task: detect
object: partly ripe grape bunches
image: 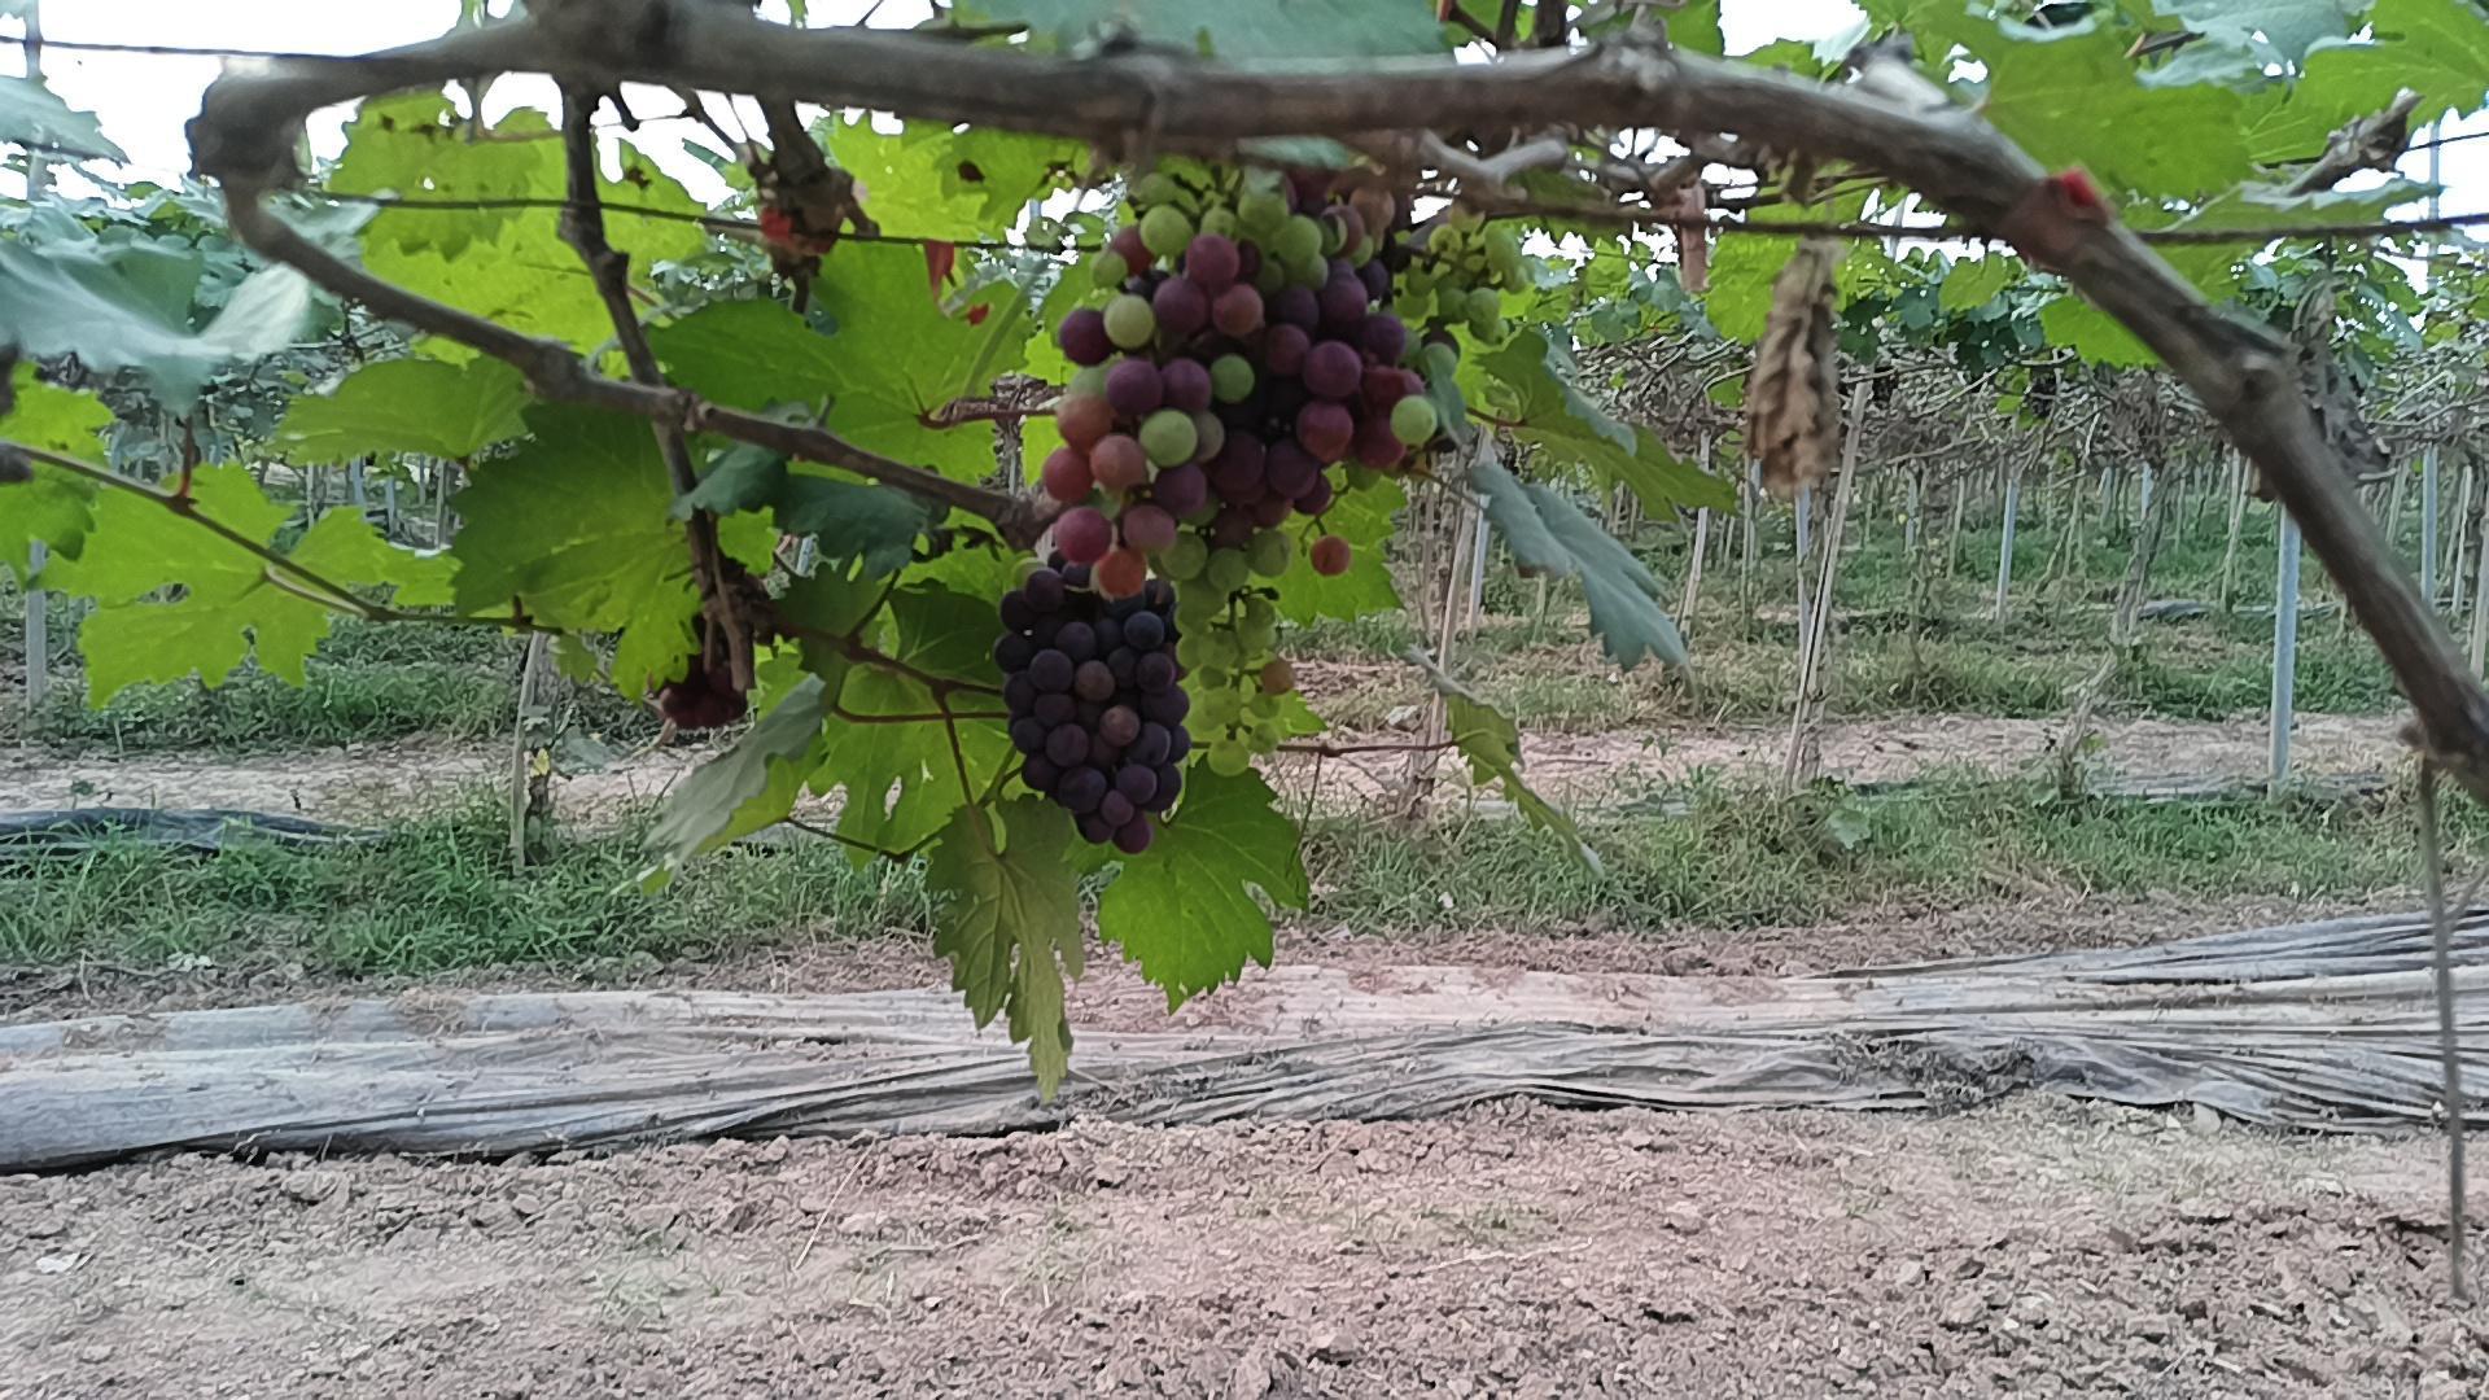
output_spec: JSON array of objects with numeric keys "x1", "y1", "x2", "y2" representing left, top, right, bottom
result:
[
  {"x1": 1160, "y1": 171, "x2": 1530, "y2": 778},
  {"x1": 1038, "y1": 178, "x2": 1313, "y2": 591}
]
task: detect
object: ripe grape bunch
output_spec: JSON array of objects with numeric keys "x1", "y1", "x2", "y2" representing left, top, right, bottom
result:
[{"x1": 993, "y1": 552, "x2": 1191, "y2": 853}]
